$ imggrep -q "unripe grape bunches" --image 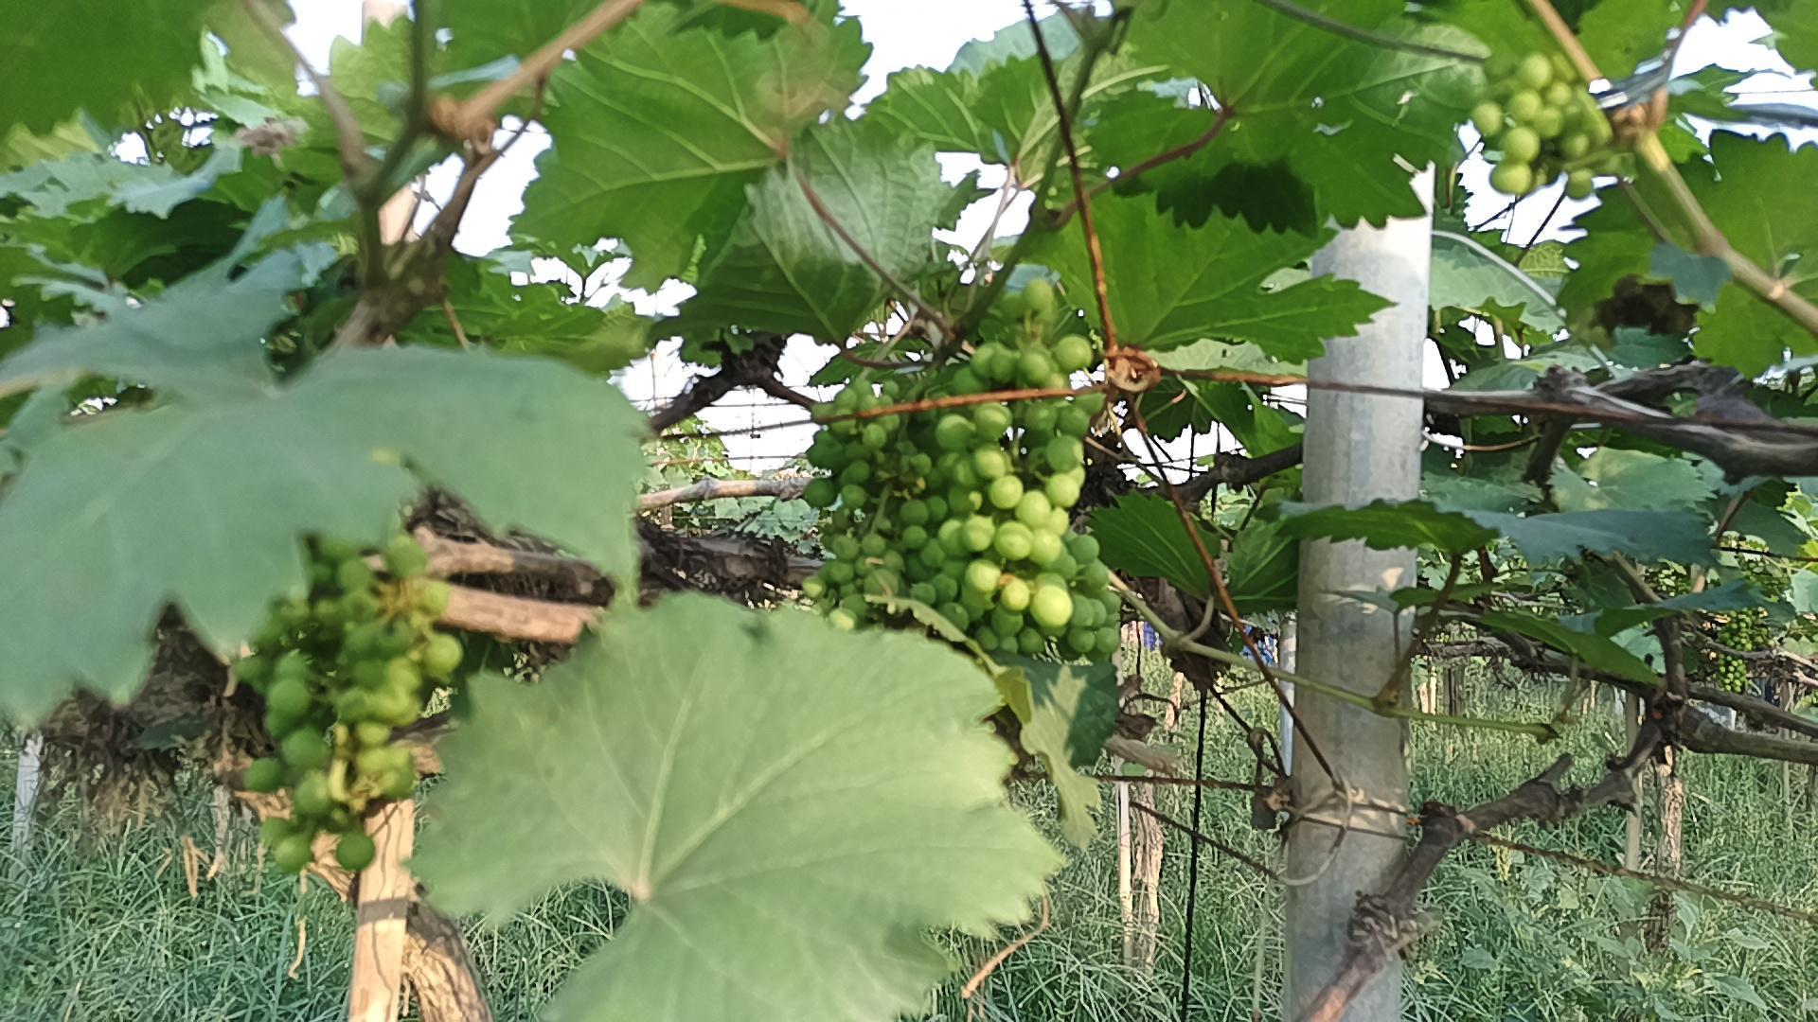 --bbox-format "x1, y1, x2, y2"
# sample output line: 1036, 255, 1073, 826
1701, 571, 1788, 693
803, 381, 931, 627
231, 529, 462, 871
1643, 563, 1690, 597
916, 280, 1119, 655
899, 467, 1017, 654
1472, 52, 1615, 199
